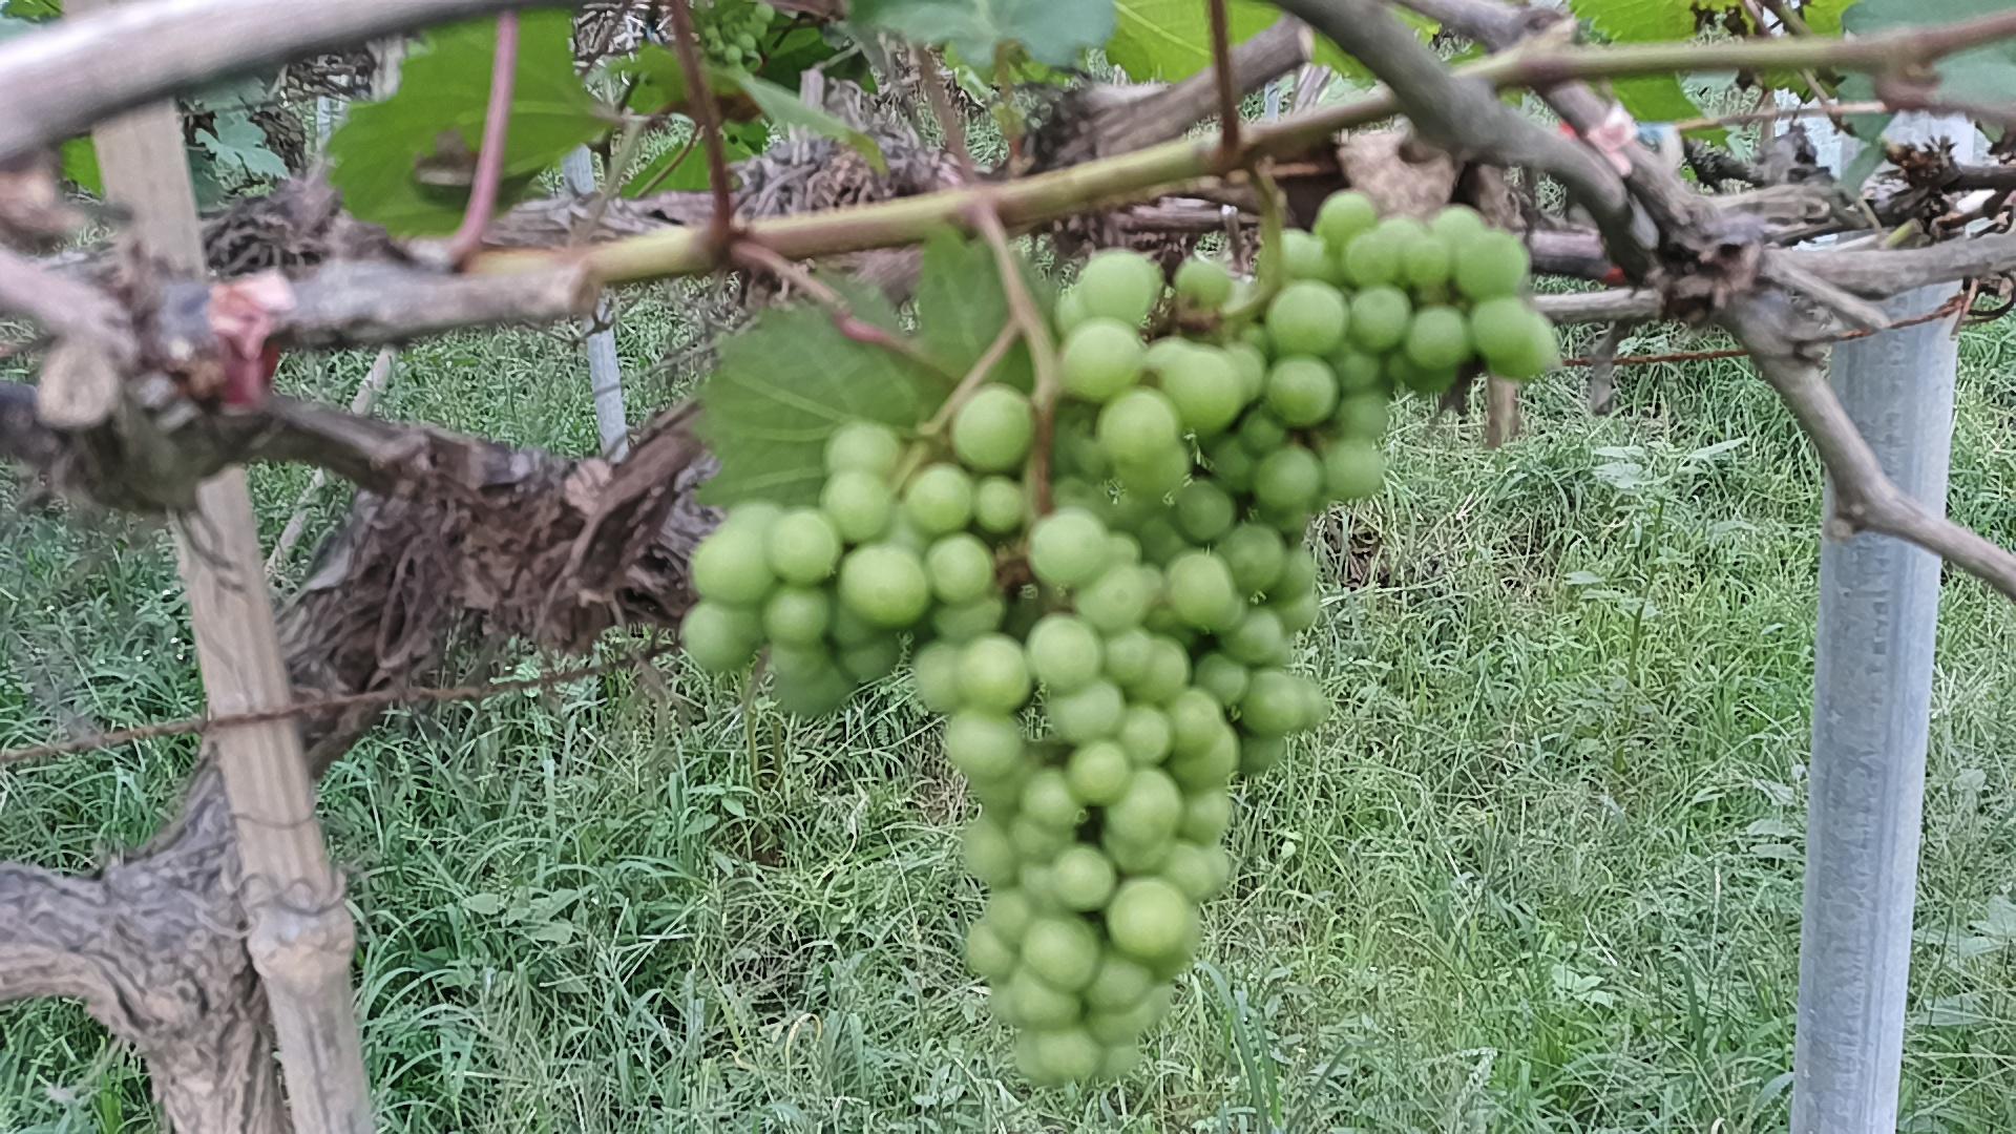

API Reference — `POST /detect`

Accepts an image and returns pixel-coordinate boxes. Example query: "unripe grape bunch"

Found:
[684,195,1555,1085]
